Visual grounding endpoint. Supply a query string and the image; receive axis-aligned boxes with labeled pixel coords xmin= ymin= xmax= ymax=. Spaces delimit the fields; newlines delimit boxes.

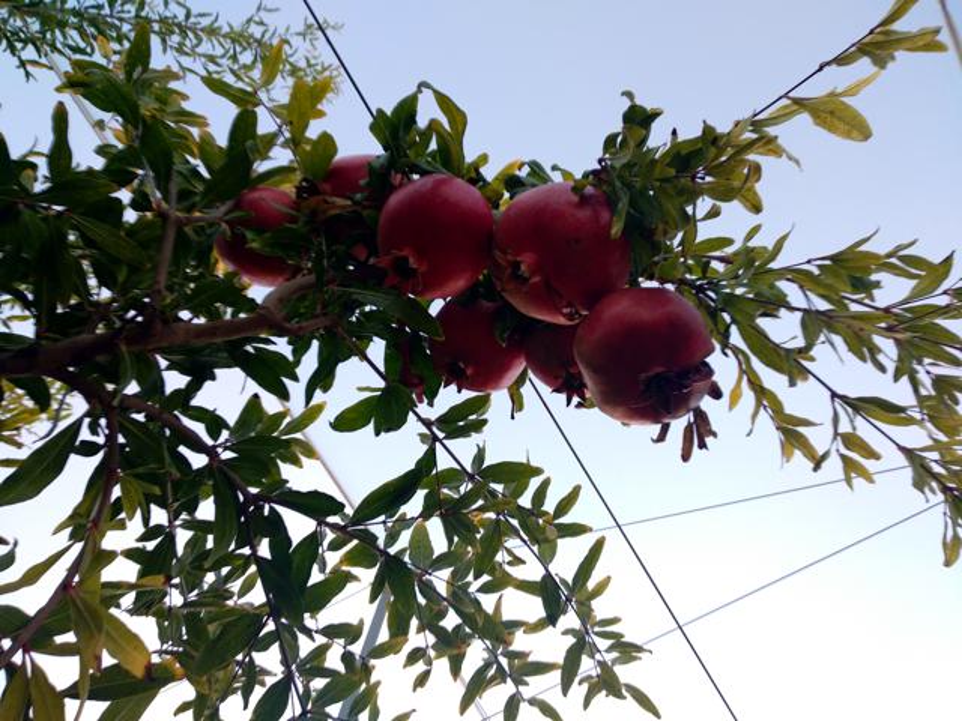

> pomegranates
xmin=373 ymin=173 xmax=496 ymax=300
xmin=523 ymin=323 xmax=592 ymax=404
xmin=574 ymin=284 xmax=714 ymax=425
xmin=489 ymin=179 xmax=631 ymax=327
xmin=215 ymin=186 xmax=304 ymax=288
xmin=319 ymin=153 xmax=379 ymax=198
xmin=427 ymin=299 xmax=526 ymax=395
